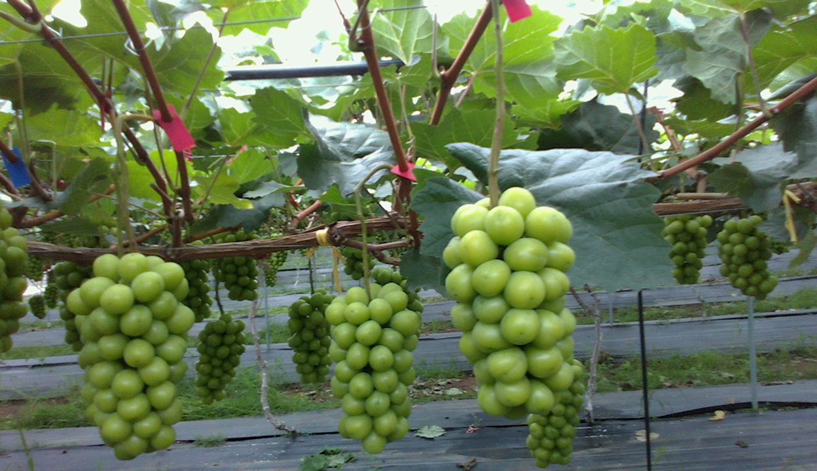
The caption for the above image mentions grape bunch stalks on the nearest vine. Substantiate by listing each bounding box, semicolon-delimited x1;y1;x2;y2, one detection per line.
115;114;148;251
354;163;390;300
488;0;505;207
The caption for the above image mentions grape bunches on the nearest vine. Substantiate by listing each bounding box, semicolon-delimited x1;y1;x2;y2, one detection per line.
443;185;577;420
66;253;198;462
325;283;420;453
